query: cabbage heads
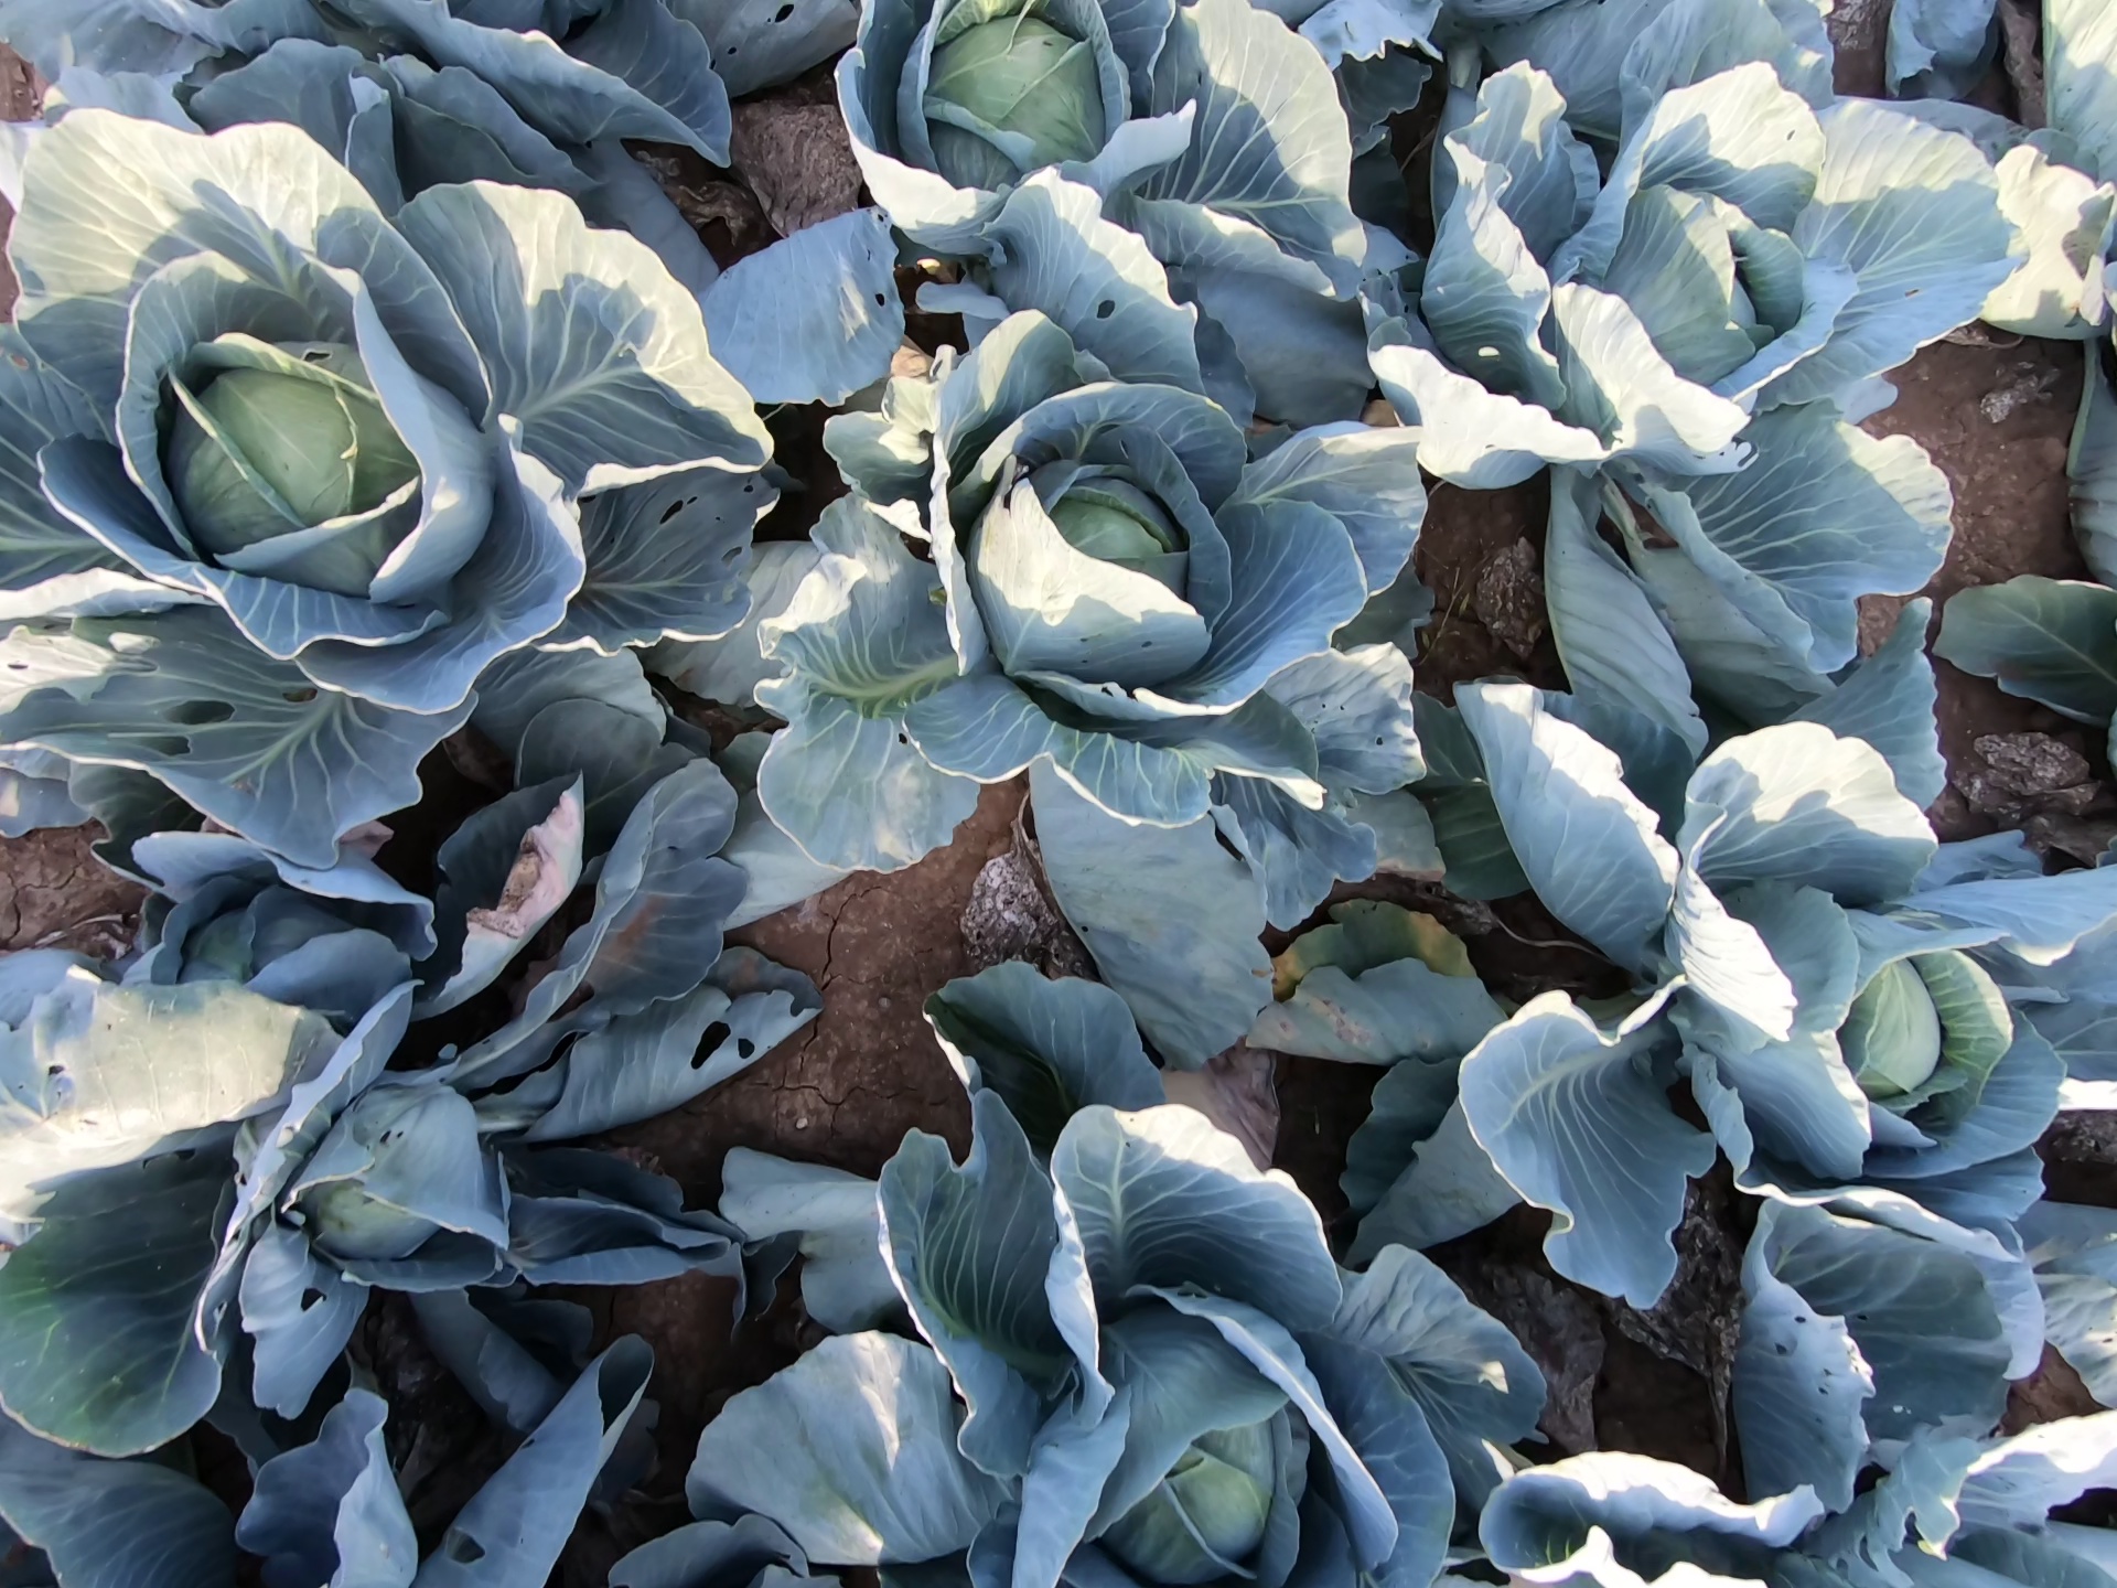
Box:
[1759,909,1947,1103]
[1093,1301,1310,1586]
[164,341,474,605]
[1019,462,1194,653]
[1588,253,1763,399]
[902,0,1126,208]
[292,1093,476,1270]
